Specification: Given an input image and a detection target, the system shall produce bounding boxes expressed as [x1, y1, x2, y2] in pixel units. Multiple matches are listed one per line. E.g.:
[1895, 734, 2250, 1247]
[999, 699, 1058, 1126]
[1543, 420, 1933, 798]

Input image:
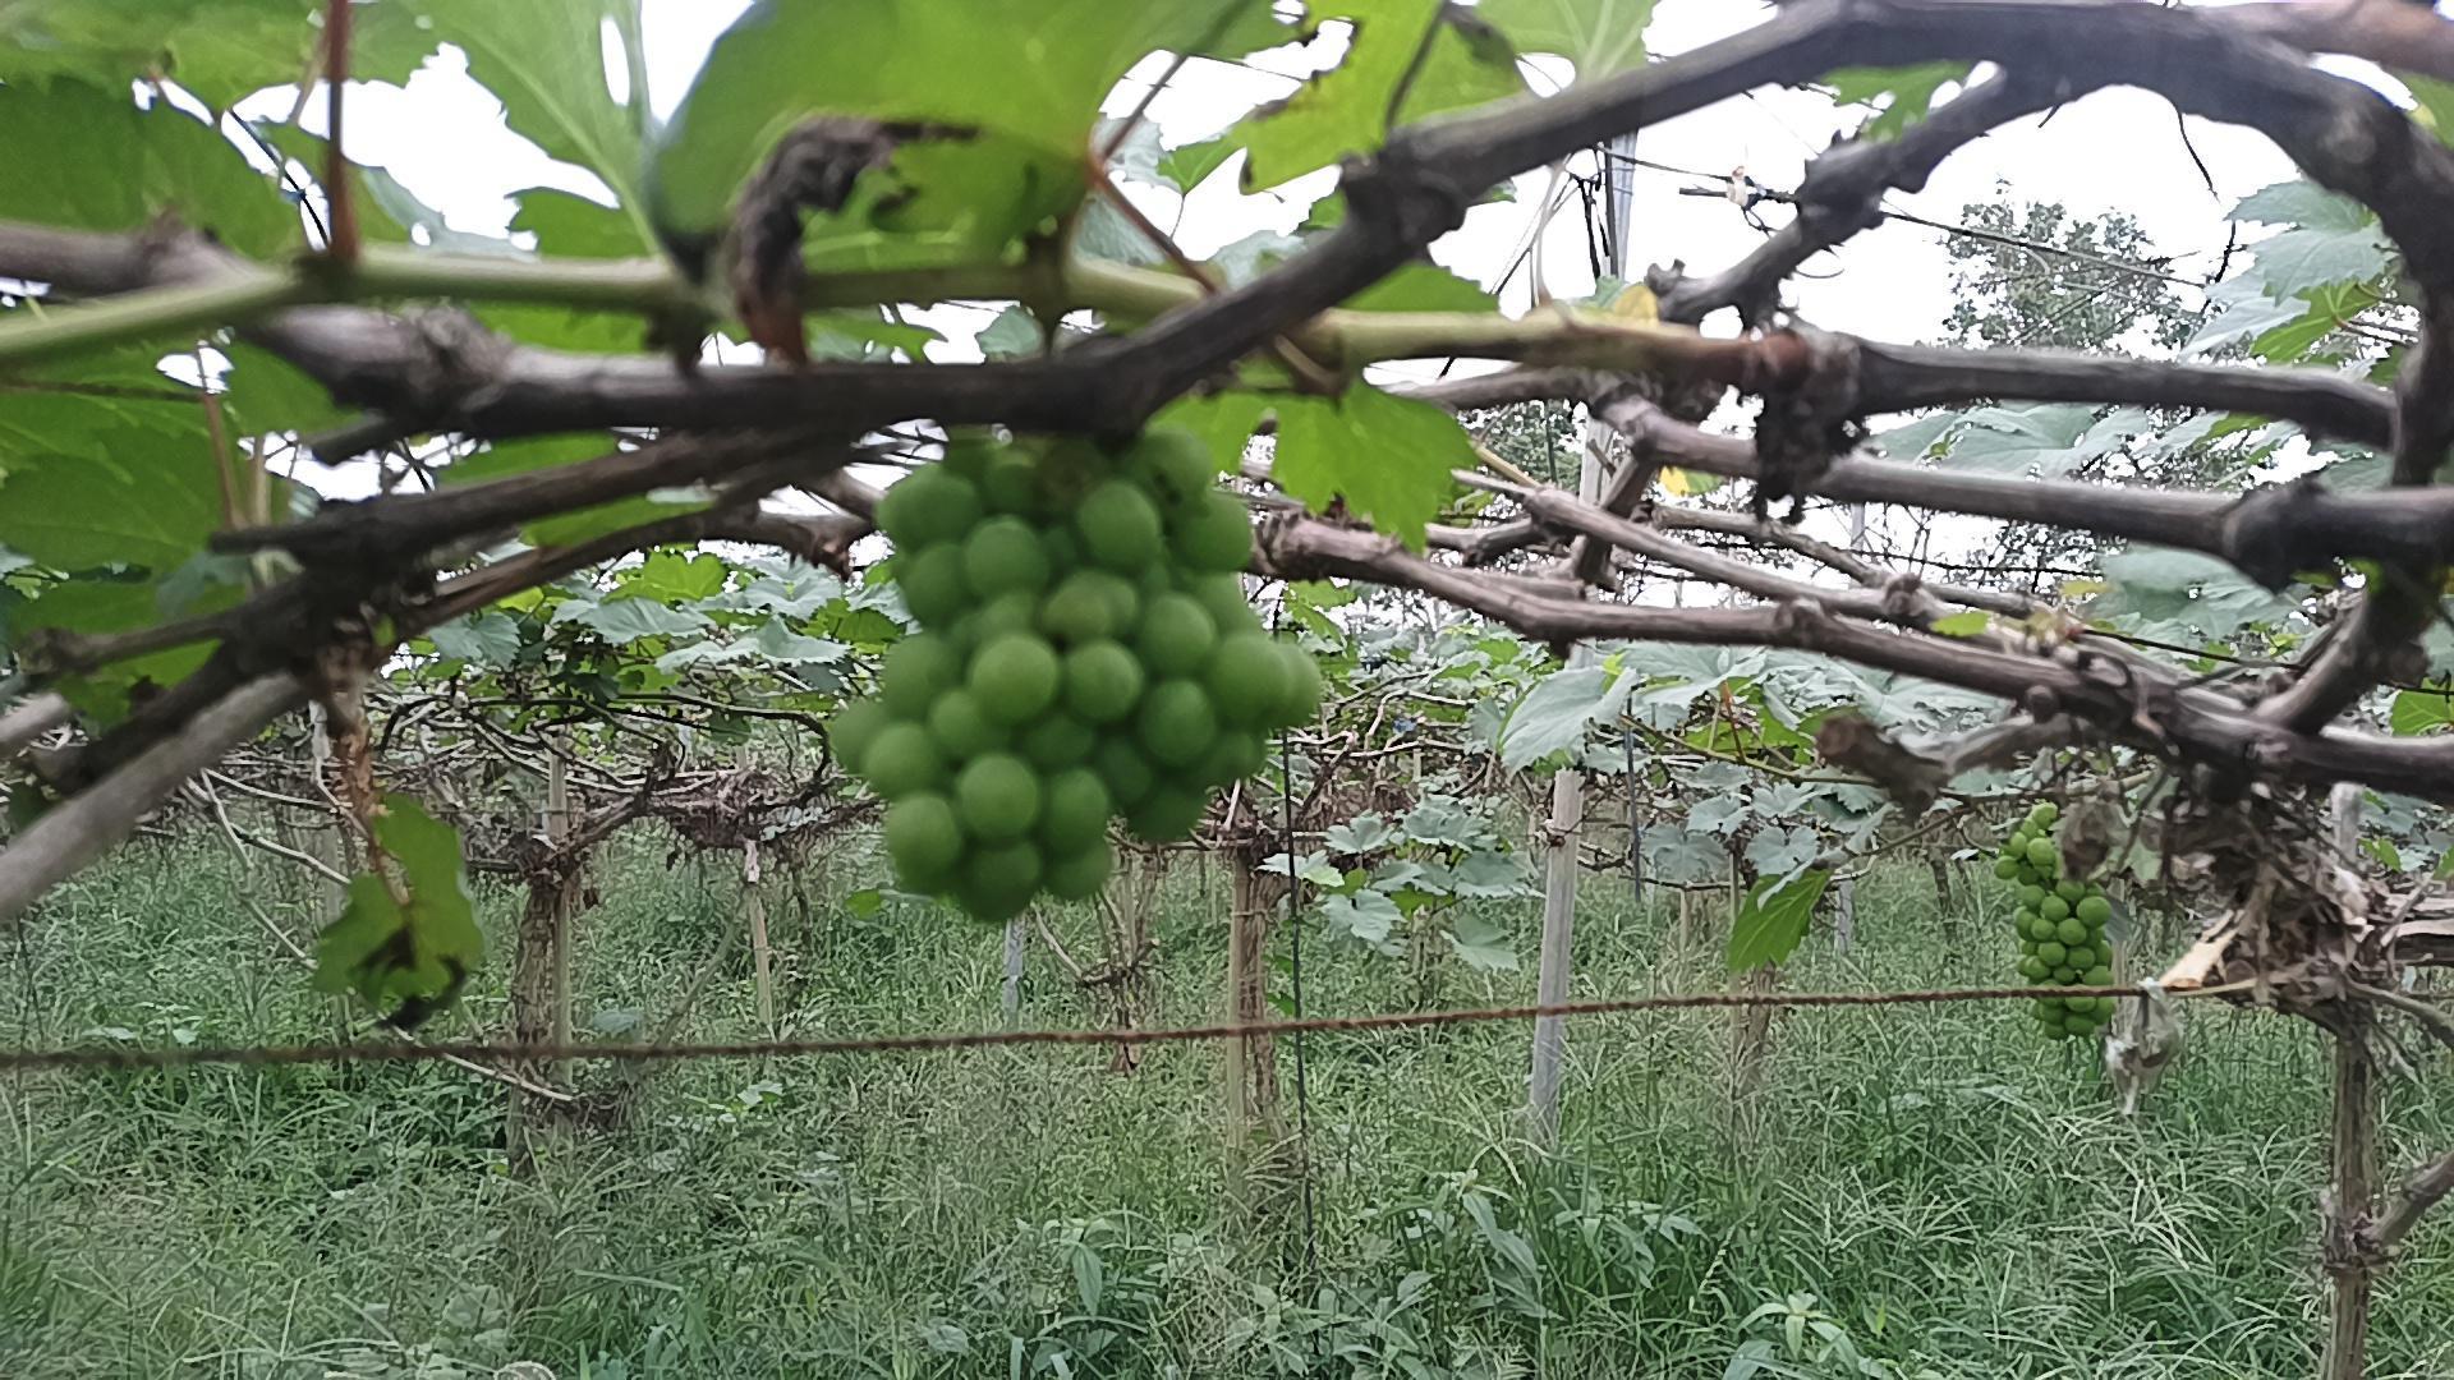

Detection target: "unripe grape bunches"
[828, 423, 1320, 920]
[1994, 802, 2118, 1040]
